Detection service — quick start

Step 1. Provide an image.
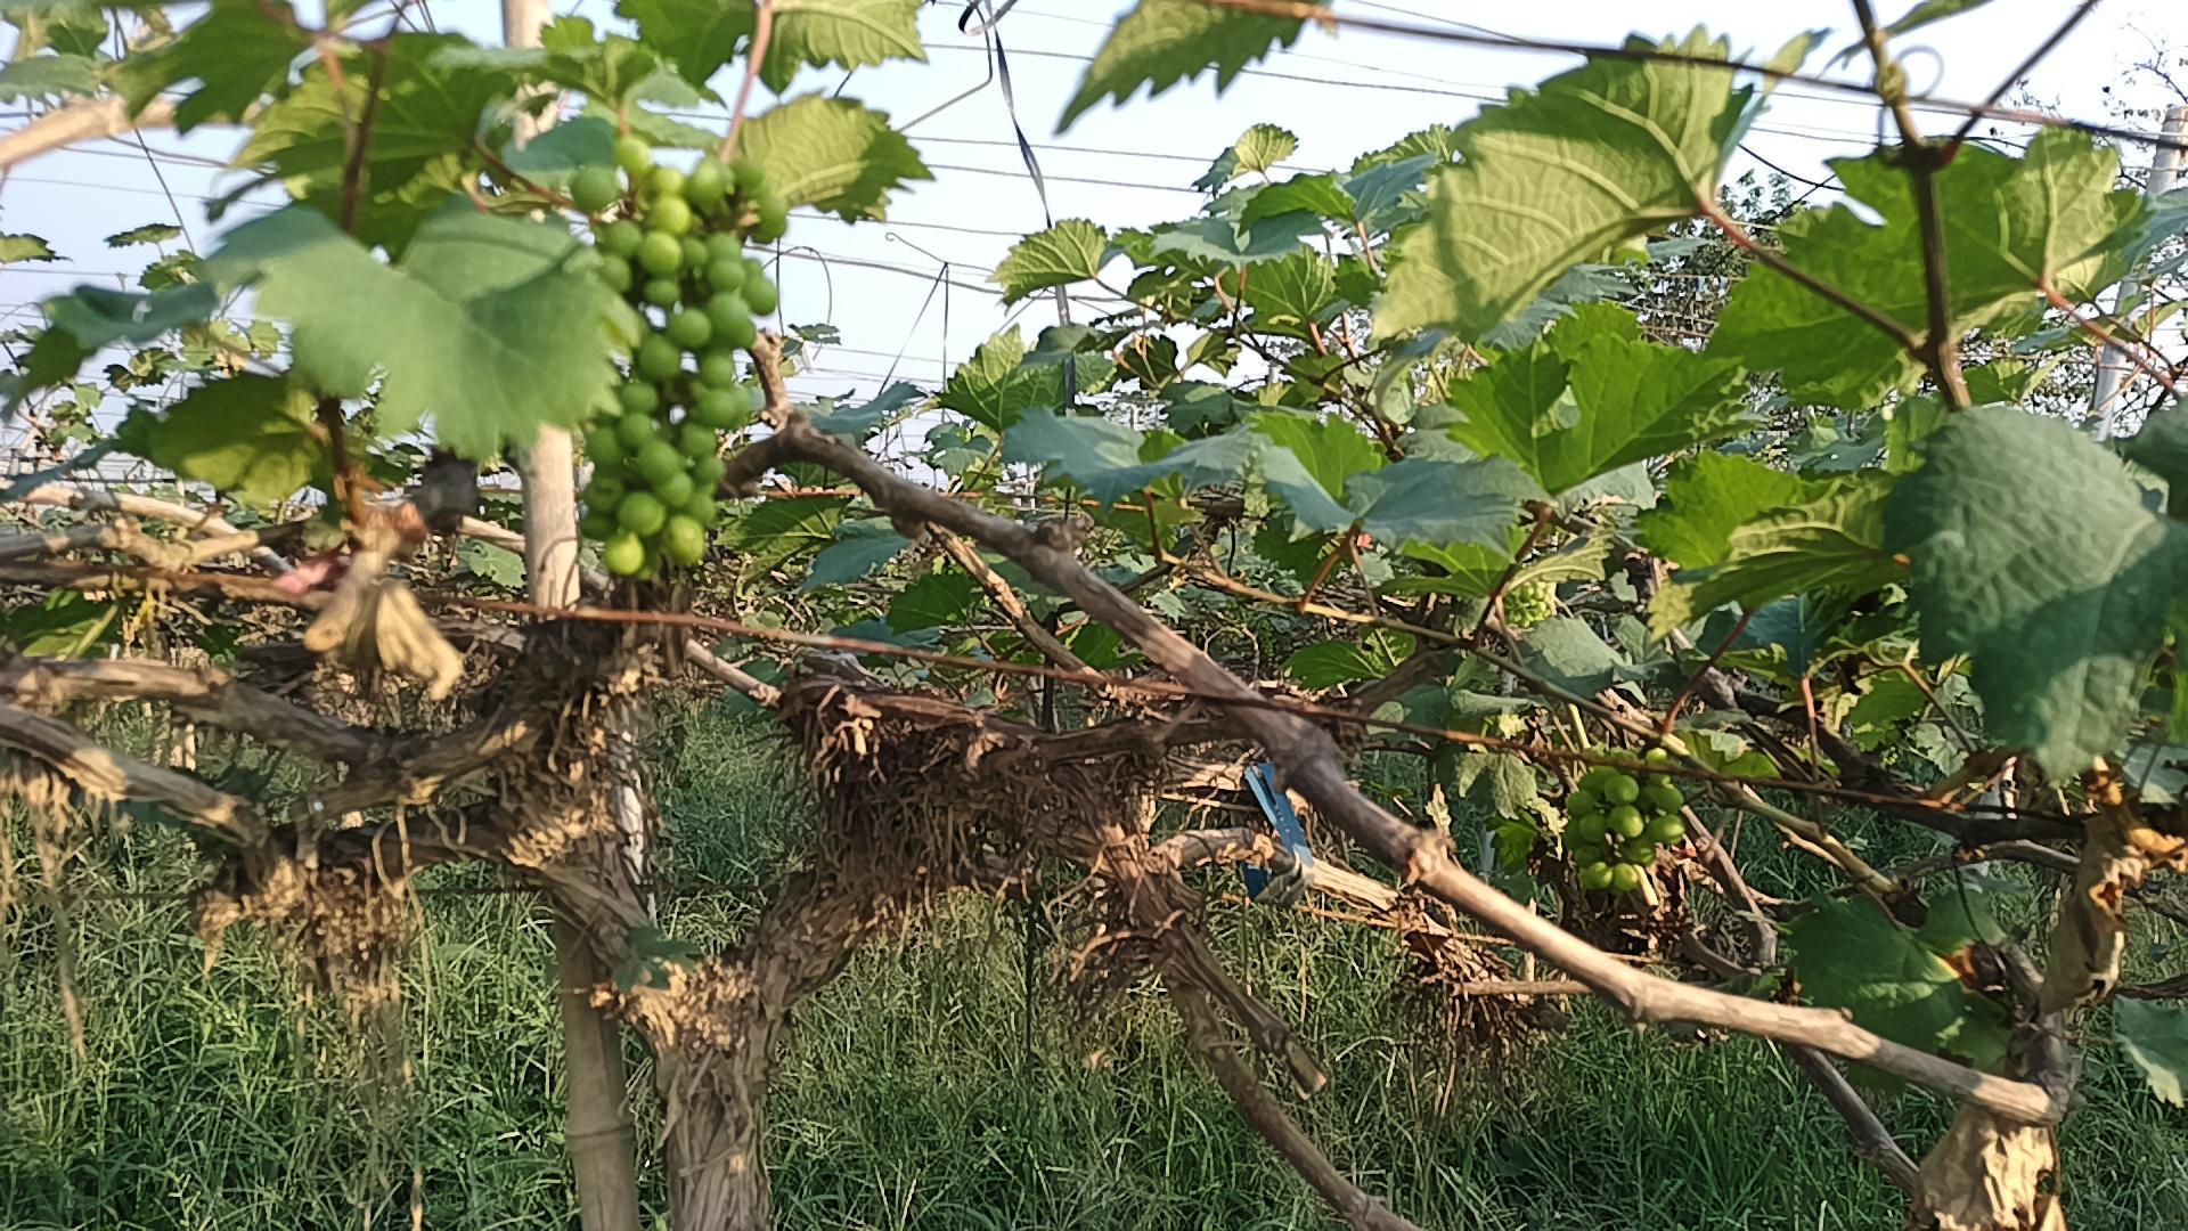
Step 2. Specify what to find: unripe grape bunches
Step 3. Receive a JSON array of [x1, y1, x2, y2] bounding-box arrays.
[[1501, 582, 1553, 628], [569, 134, 787, 576], [1562, 747, 1684, 894]]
